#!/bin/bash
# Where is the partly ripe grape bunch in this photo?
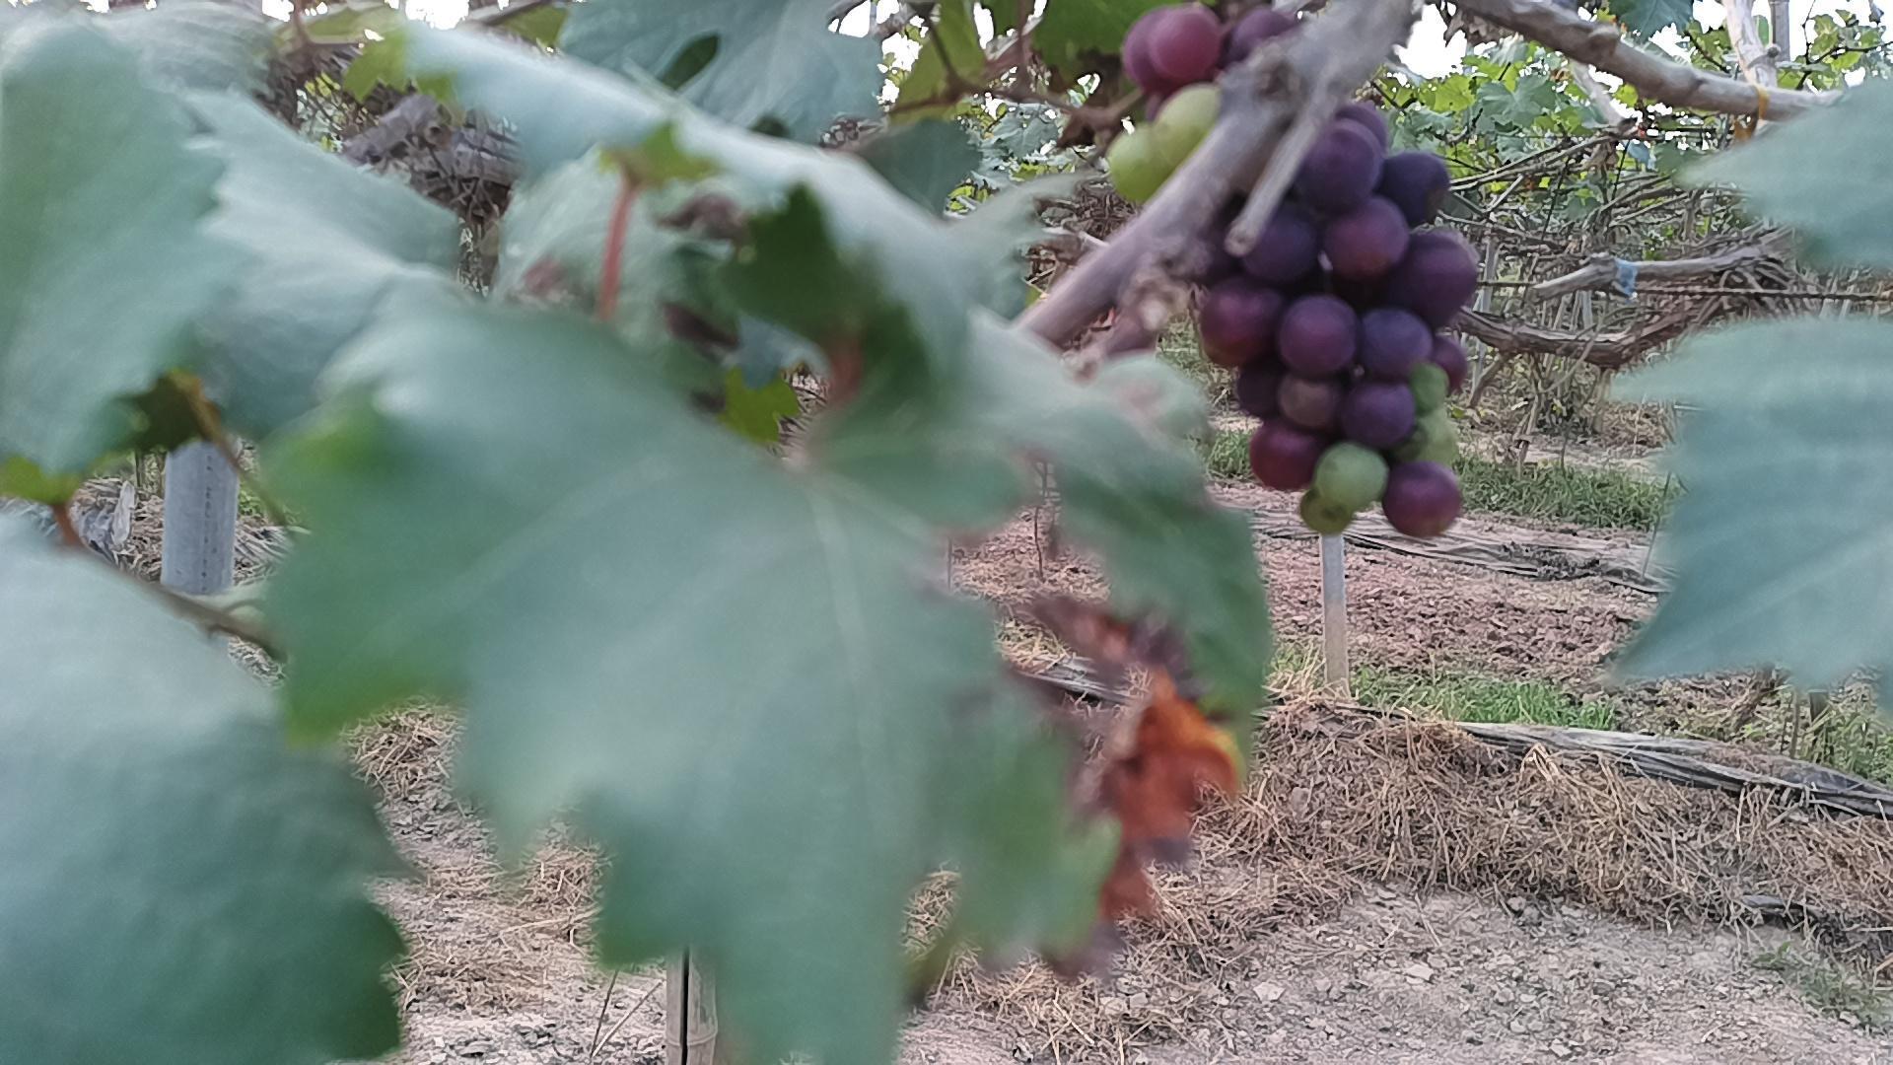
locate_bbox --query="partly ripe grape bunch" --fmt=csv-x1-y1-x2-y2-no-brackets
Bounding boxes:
1106,3,1485,541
